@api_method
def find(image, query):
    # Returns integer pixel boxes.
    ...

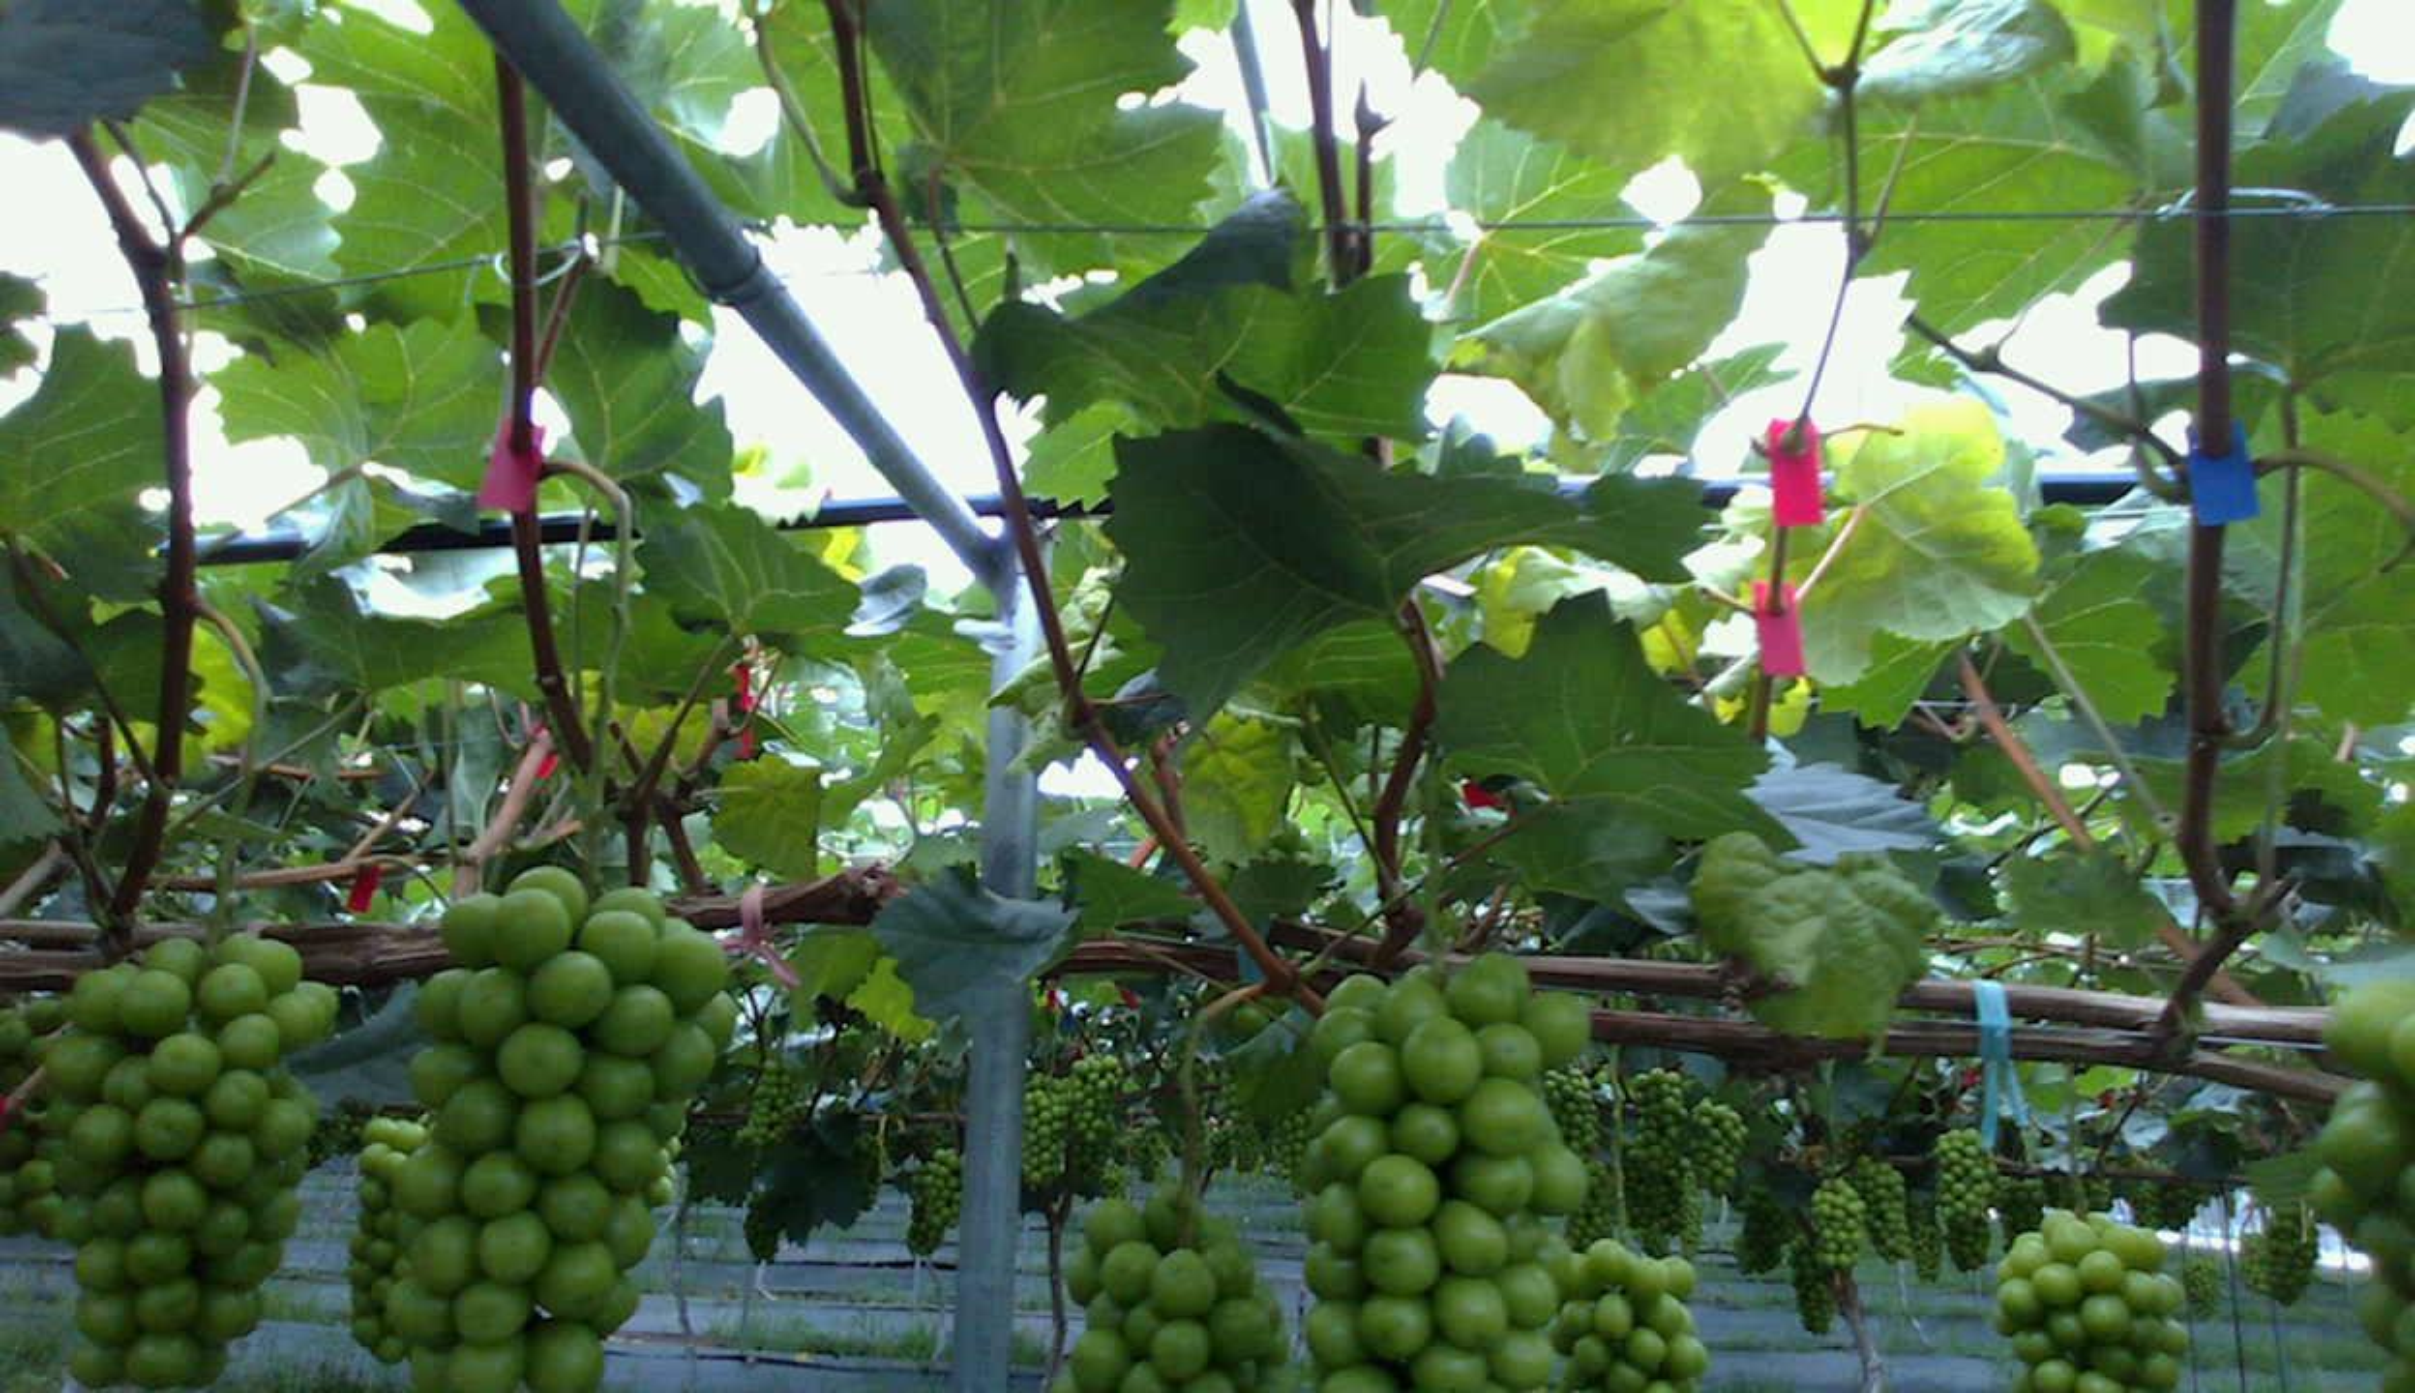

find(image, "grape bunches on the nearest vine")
[2311,979,2413,1391]
[1302,948,1591,1391]
[46,933,337,1391]
[389,865,737,1391]
[1051,1182,1297,1391]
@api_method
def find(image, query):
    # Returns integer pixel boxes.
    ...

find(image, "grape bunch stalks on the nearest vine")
[1424,745,1444,993]
[195,598,267,985]
[1177,981,1266,1248]
[538,457,631,902]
